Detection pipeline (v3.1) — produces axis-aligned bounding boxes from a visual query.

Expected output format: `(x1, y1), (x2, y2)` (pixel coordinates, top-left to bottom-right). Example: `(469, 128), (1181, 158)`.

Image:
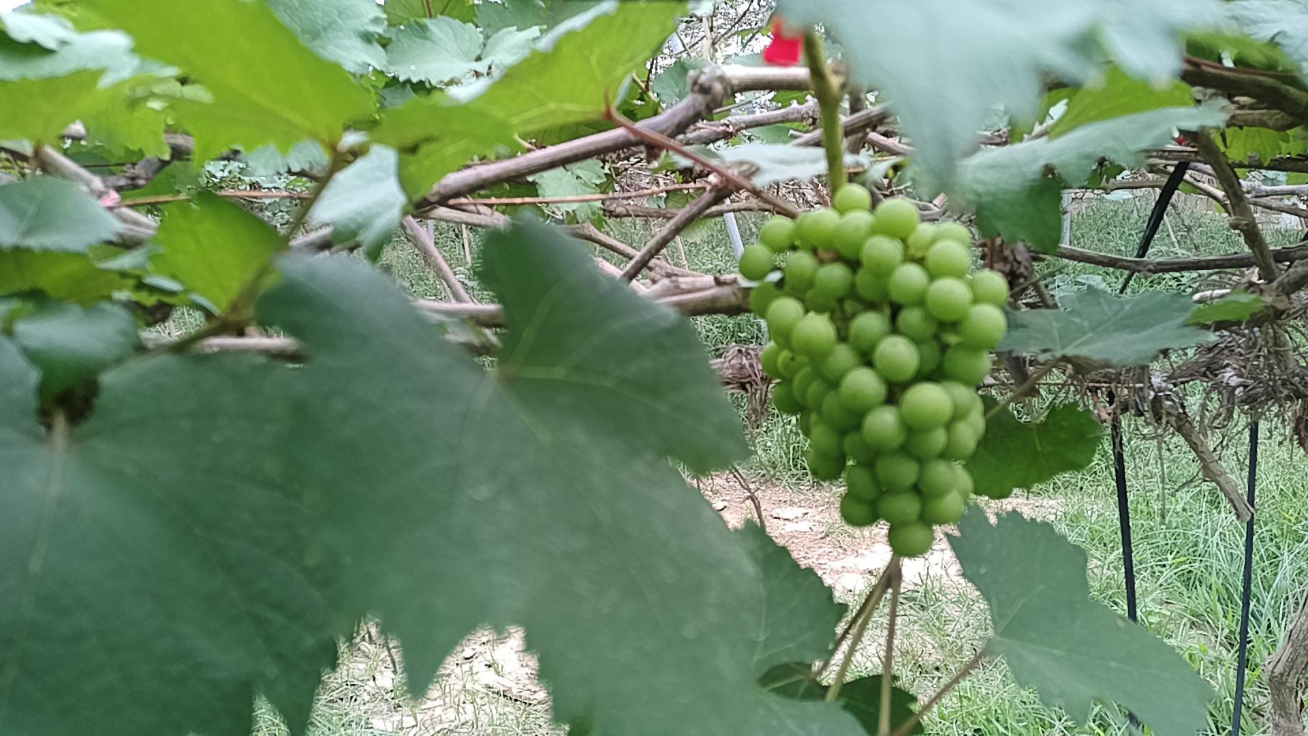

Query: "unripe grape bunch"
(739, 183), (1008, 556)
